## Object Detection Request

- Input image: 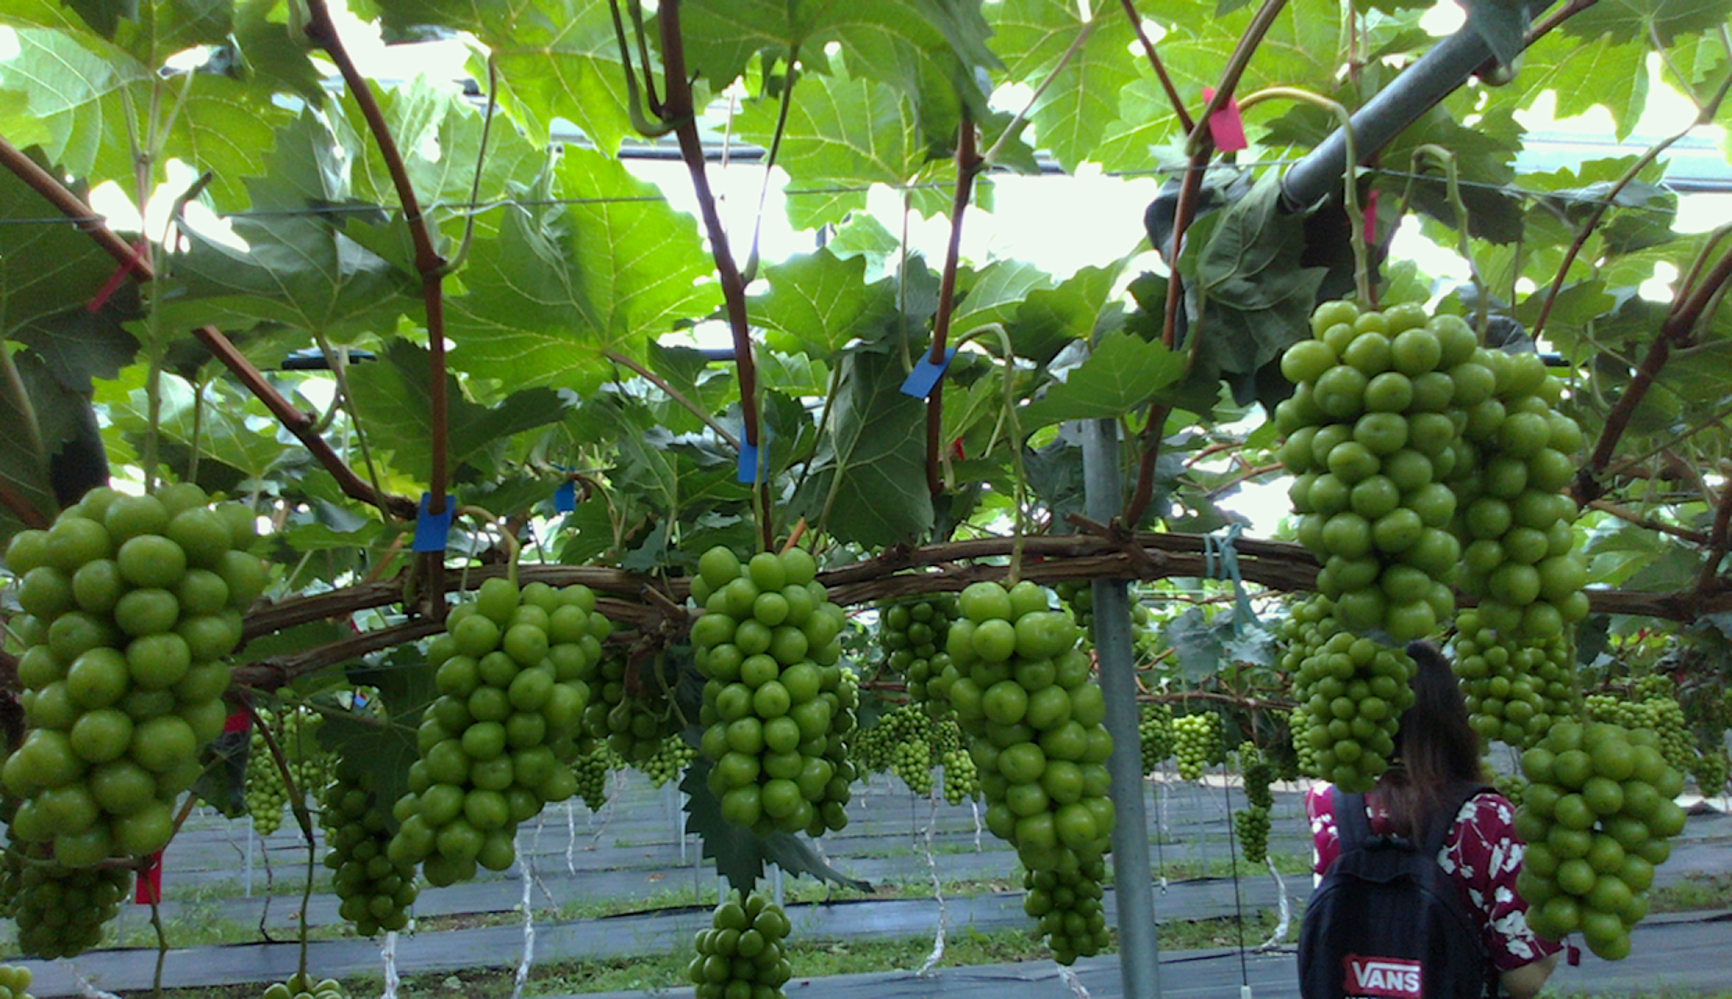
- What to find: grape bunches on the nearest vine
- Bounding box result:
[1274,300,1493,647]
[1510,721,1686,956]
[387,579,609,889]
[1,480,265,870]
[687,547,847,839]
[1450,350,1588,640]
[942,581,1116,873]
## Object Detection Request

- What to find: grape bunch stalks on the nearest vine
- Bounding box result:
[1565,629,1592,728]
[1411,144,1489,345]
[953,323,1021,587]
[1242,86,1373,311]
[749,350,766,554]
[144,246,165,490]
[462,506,520,586]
